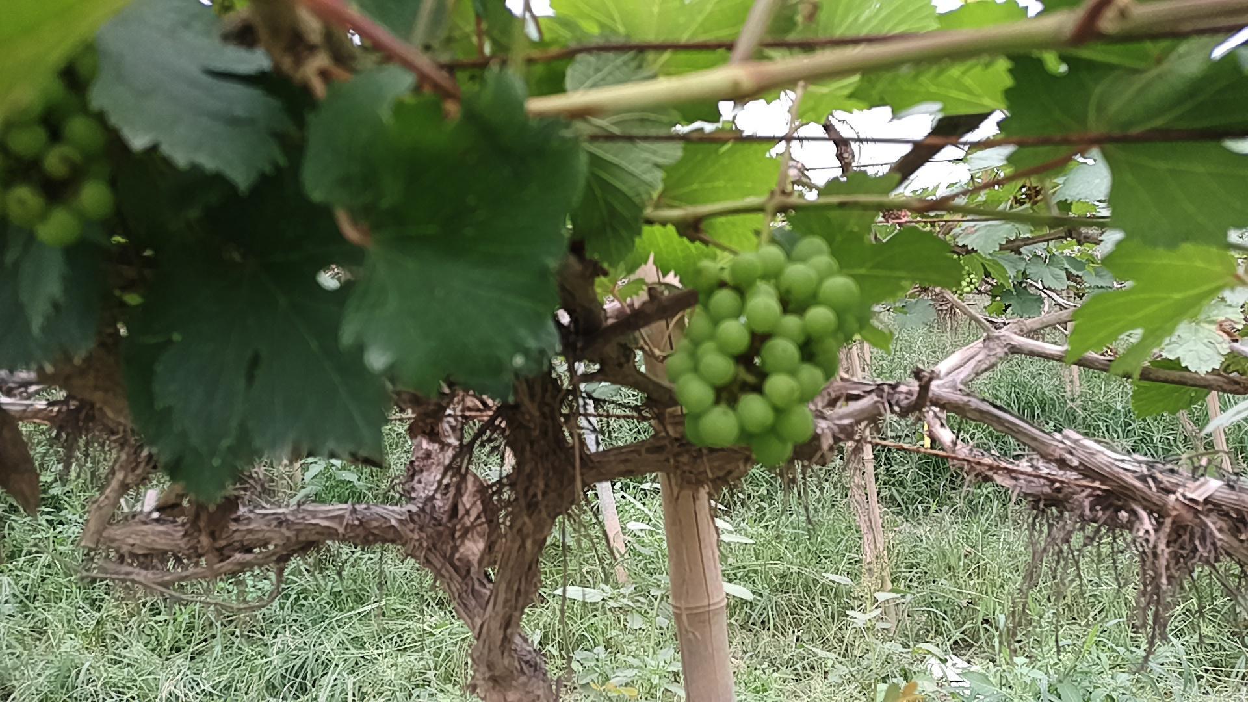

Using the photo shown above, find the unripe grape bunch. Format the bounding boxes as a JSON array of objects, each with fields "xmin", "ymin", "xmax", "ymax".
[{"xmin": 665, "ymin": 237, "xmax": 861, "ymax": 465}]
